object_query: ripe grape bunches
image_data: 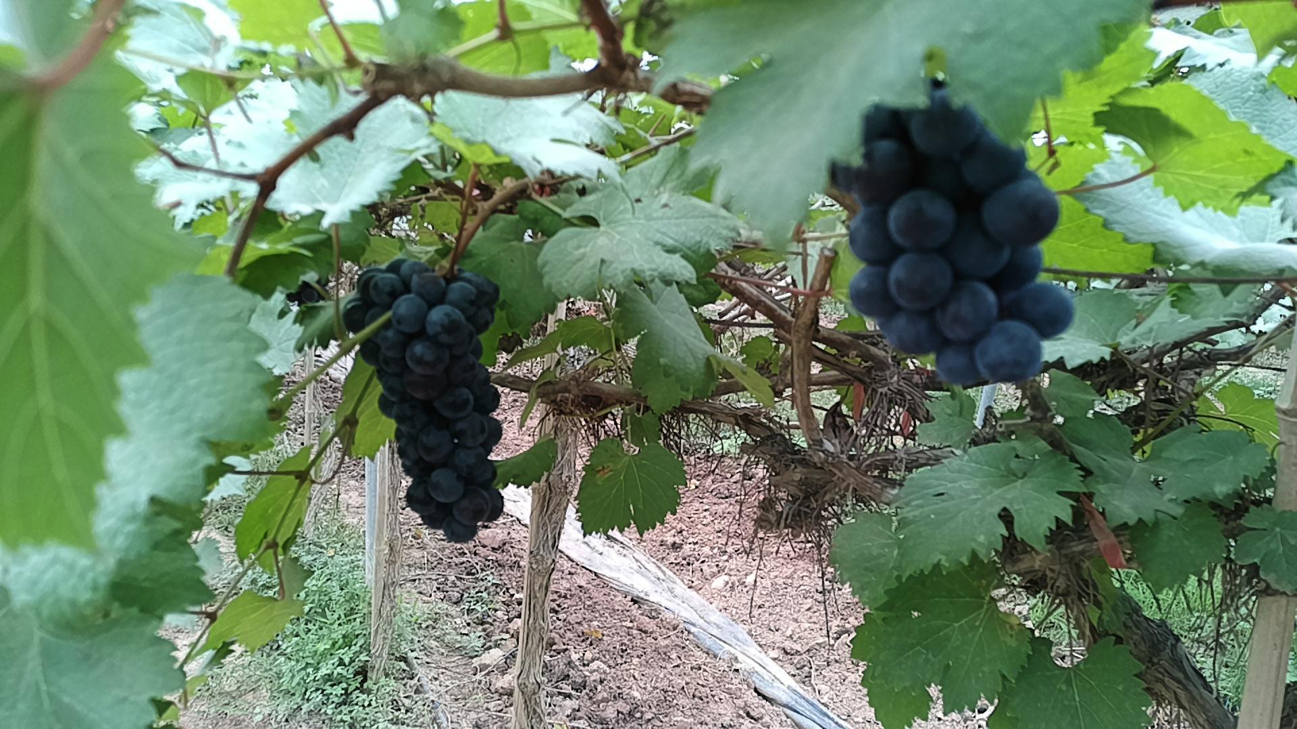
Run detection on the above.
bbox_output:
[286,276,330,307]
[832,80,1073,386]
[343,258,503,542]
